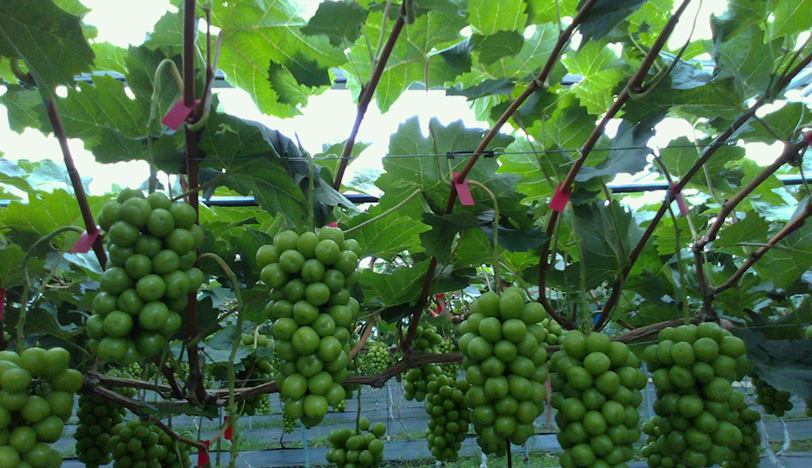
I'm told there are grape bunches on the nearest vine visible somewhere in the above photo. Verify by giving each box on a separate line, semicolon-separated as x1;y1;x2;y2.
549;329;647;467
255;226;360;429
643;322;746;467
459;288;548;447
85;187;203;367
1;347;81;467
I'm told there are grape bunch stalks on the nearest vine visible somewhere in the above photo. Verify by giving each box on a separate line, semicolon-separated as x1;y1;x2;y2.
16;225;77;351
146;58;183;192
667;199;690;324
304;152;316;231
567;205;590;333
468;179;501;294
